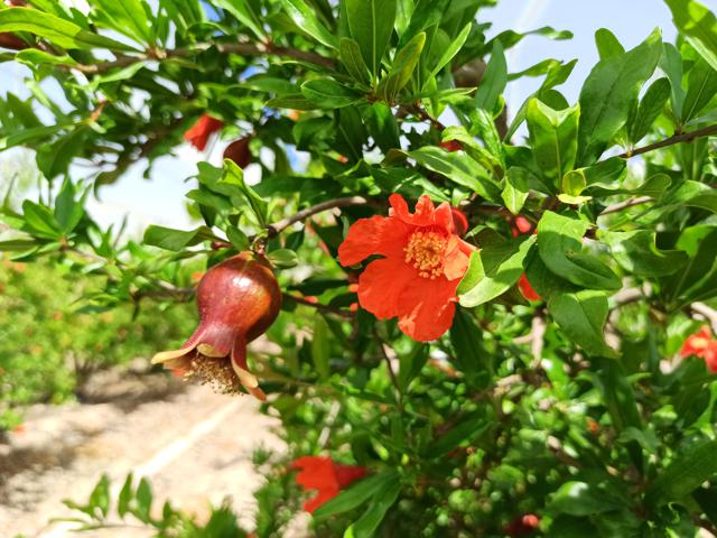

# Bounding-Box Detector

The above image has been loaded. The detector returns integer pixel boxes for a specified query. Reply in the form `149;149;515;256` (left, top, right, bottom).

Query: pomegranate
151;250;281;401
